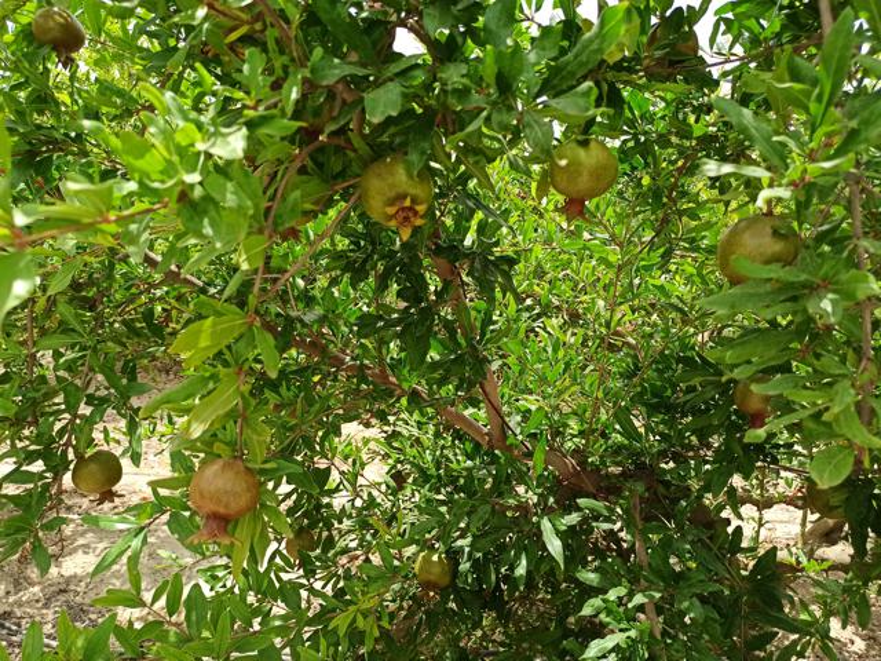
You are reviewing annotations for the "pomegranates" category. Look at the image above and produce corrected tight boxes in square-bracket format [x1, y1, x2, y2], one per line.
[414, 549, 453, 600]
[72, 449, 124, 507]
[644, 21, 699, 77]
[361, 156, 434, 245]
[716, 215, 797, 284]
[184, 457, 260, 545]
[286, 529, 315, 559]
[551, 138, 618, 226]
[734, 373, 774, 430]
[32, 7, 87, 70]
